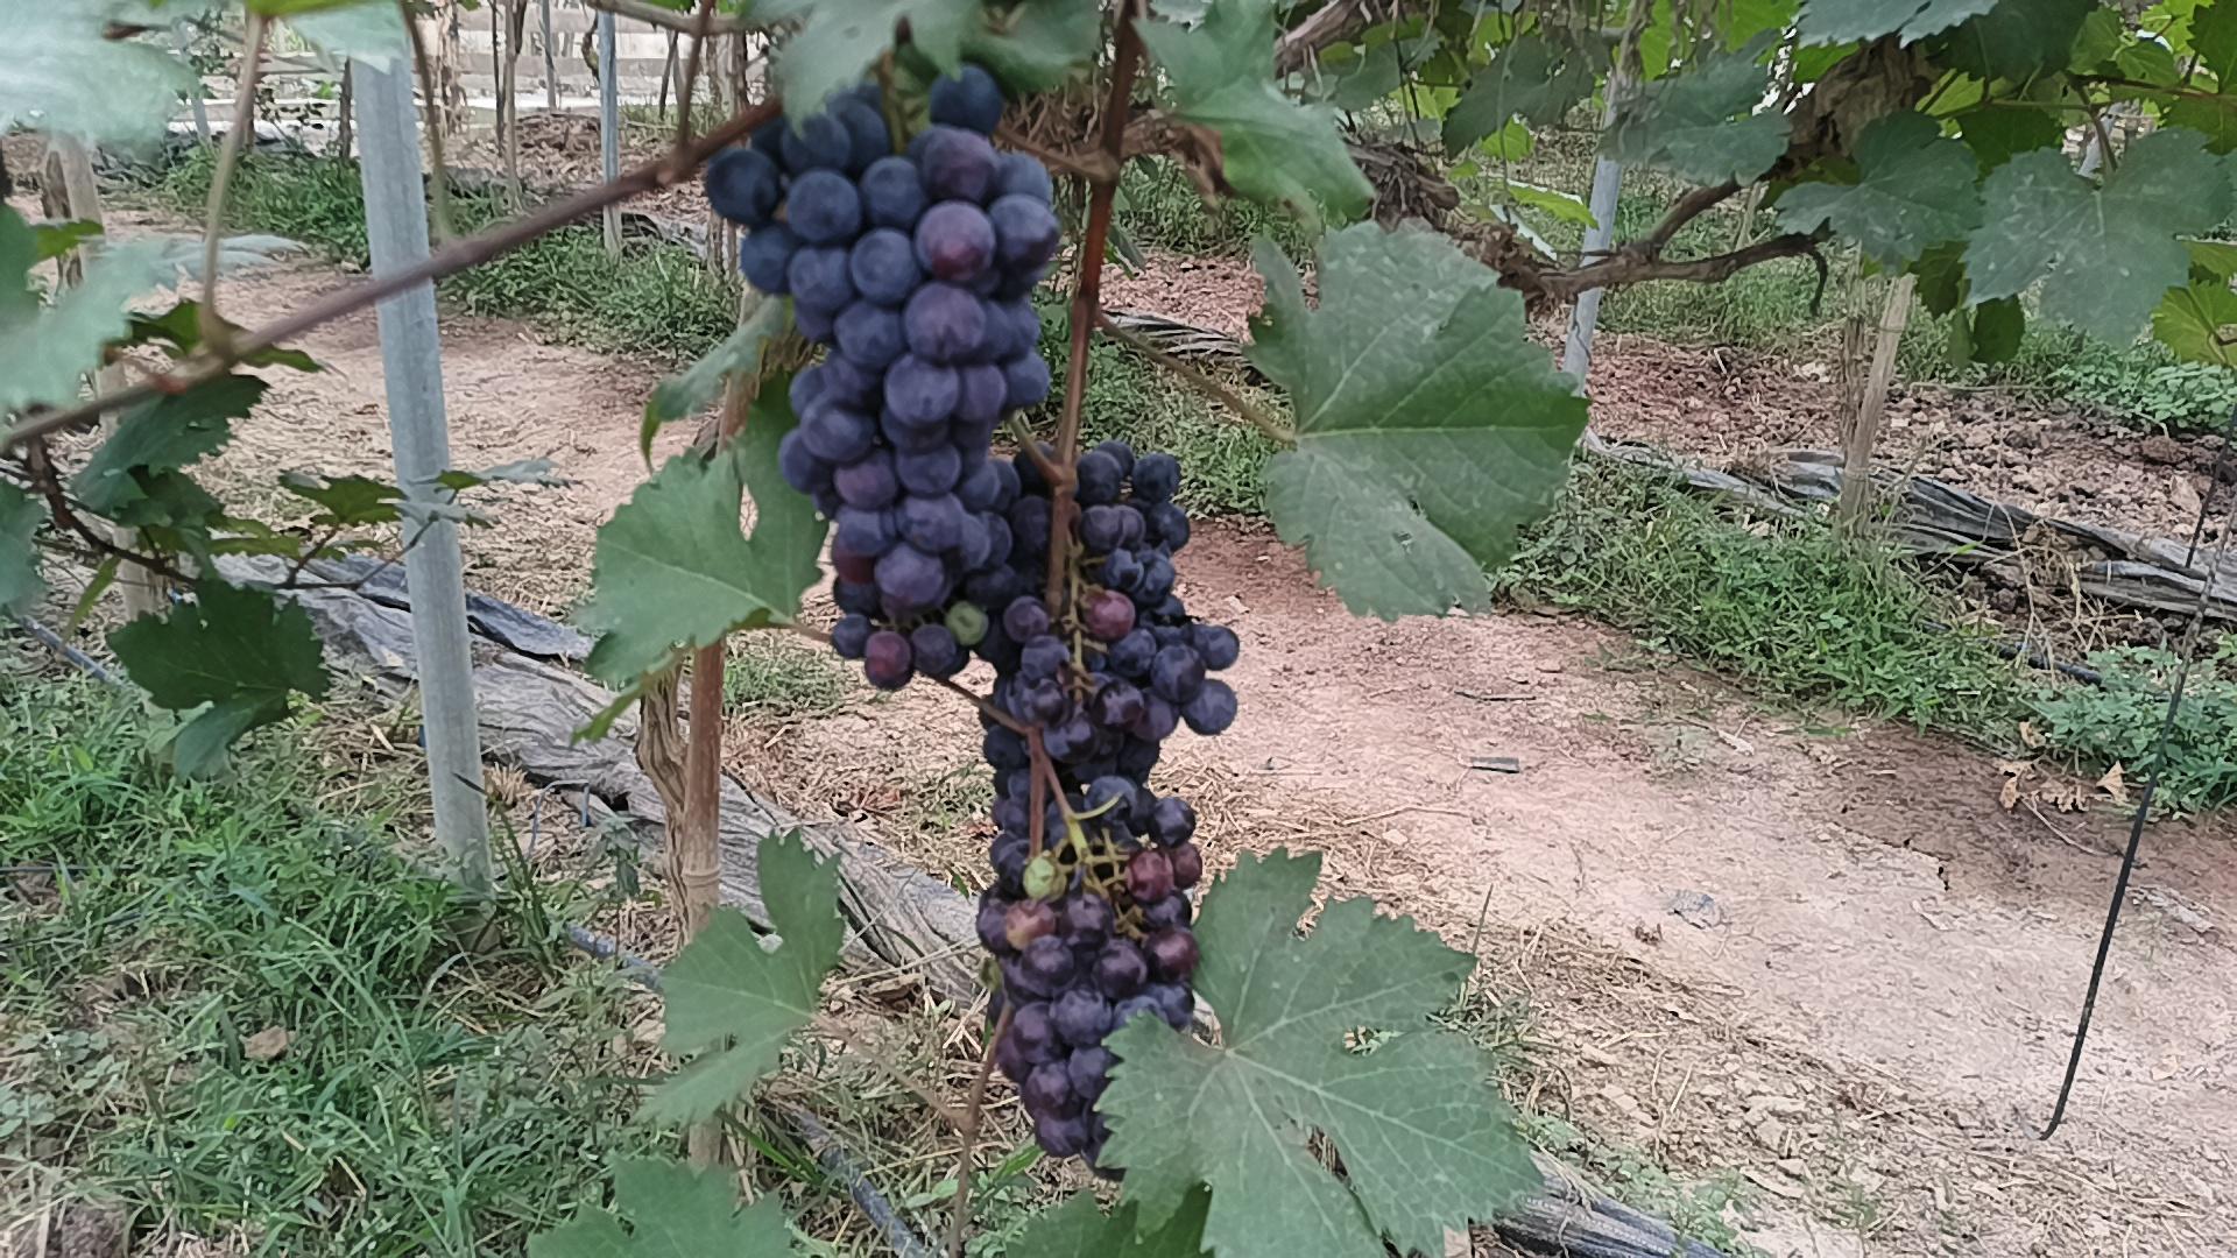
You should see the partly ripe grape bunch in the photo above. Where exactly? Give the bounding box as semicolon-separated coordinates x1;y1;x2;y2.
976;441;1236;1162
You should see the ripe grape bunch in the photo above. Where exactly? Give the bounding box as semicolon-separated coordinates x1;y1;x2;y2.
707;65;1066;690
